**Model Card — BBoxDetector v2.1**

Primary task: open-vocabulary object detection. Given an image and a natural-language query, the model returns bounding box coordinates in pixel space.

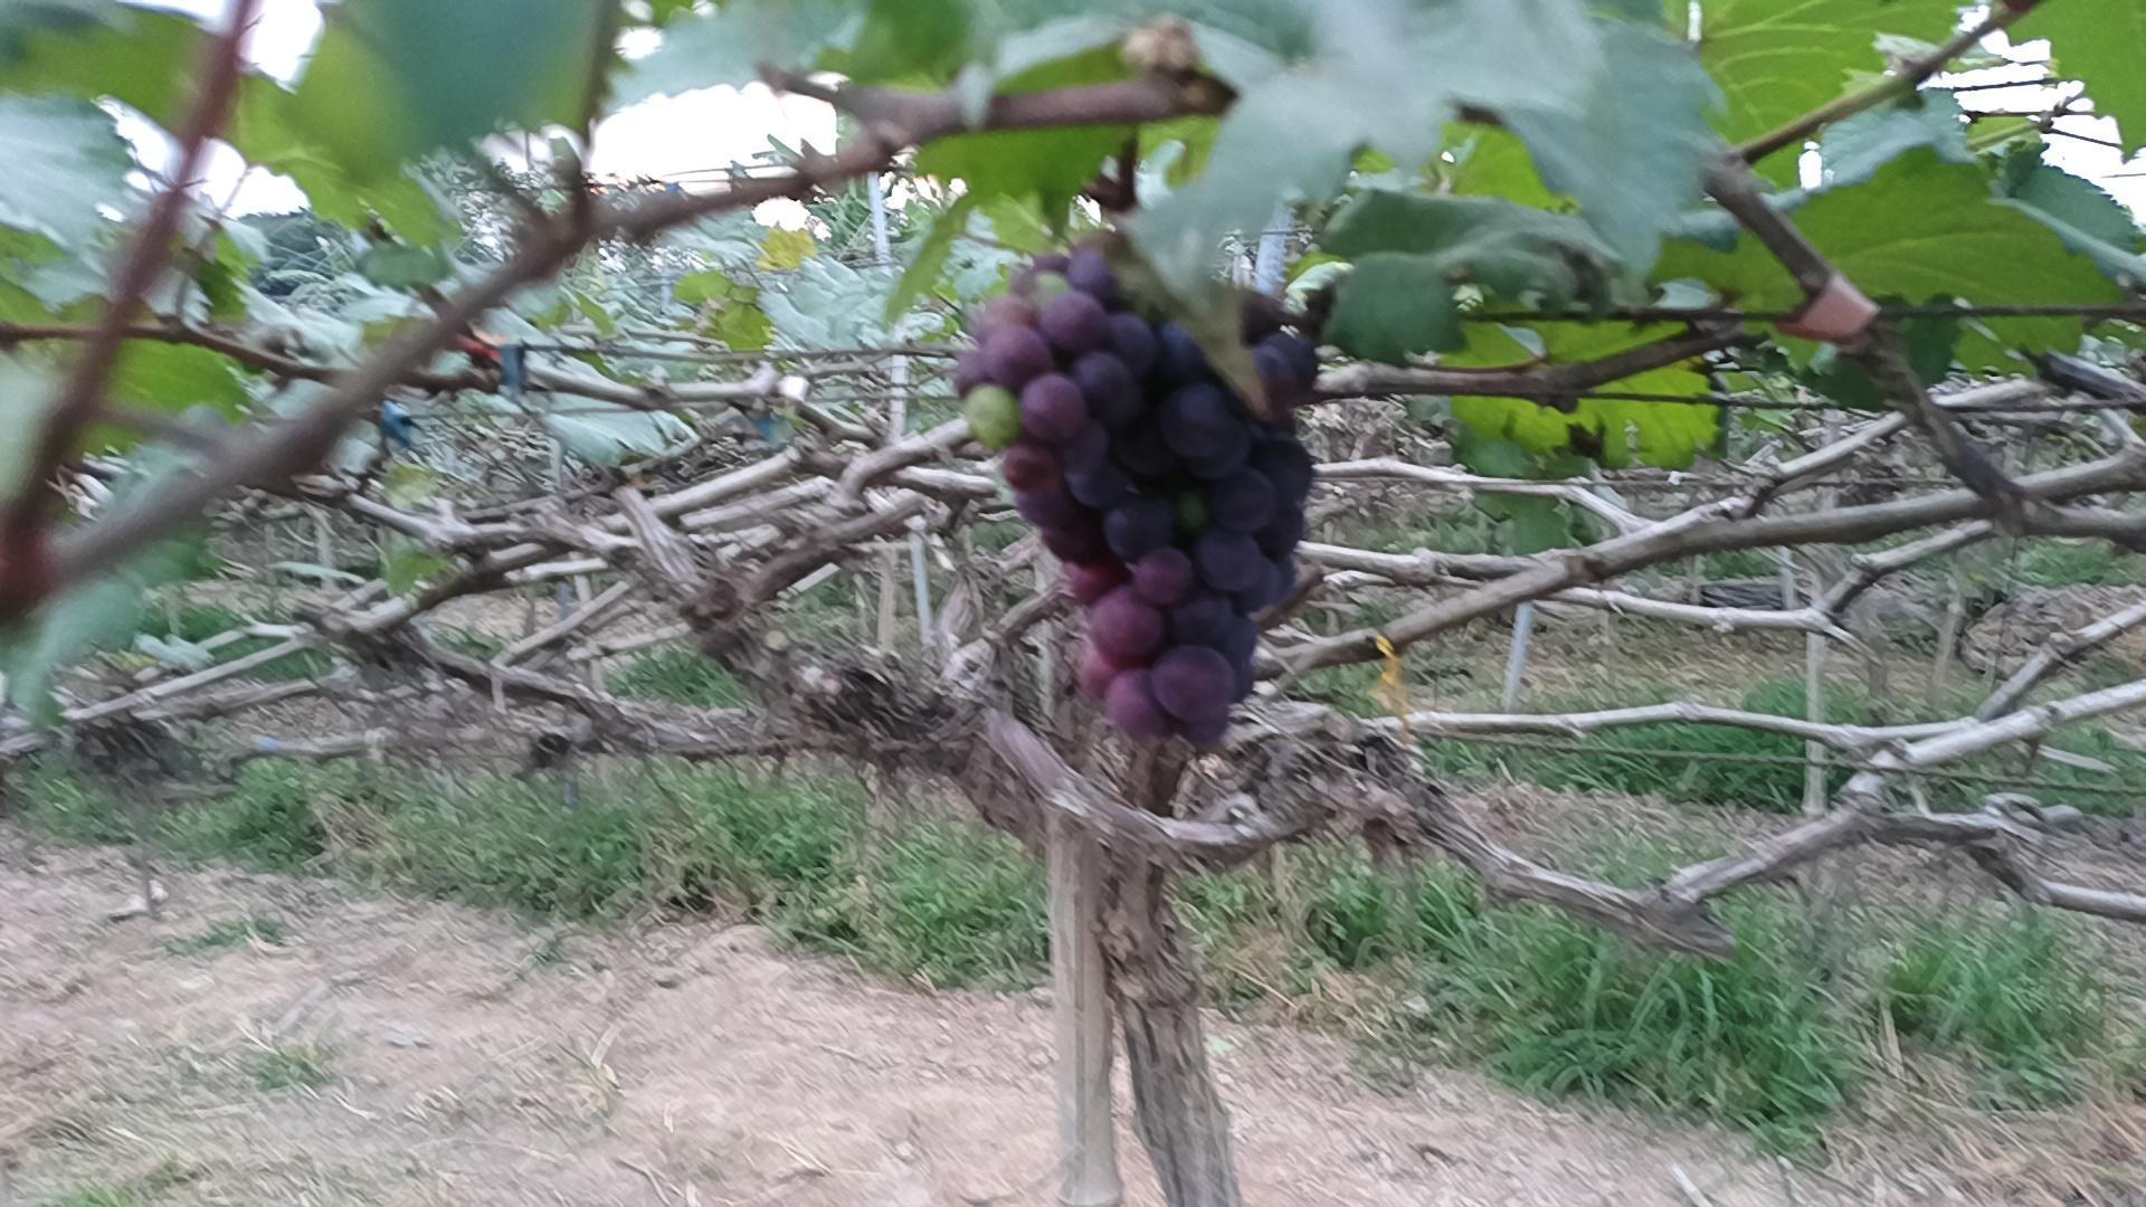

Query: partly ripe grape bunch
[956,230,1318,744]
